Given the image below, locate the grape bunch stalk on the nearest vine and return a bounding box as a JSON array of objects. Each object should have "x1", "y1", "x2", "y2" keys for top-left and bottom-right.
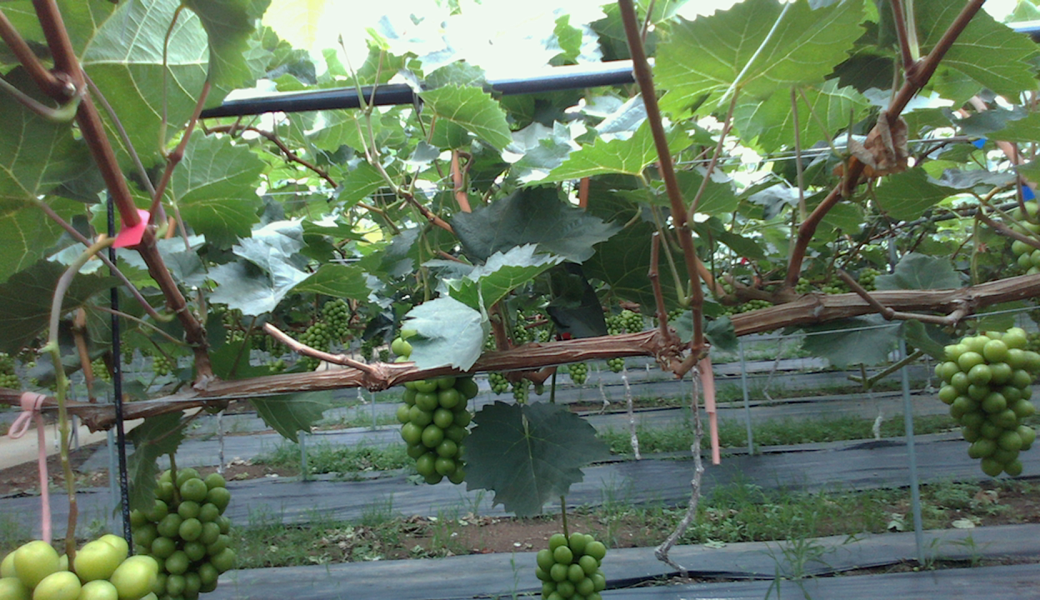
[{"x1": 37, "y1": 235, "x2": 110, "y2": 568}]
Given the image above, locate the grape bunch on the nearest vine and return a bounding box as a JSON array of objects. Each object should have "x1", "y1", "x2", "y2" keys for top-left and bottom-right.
[{"x1": 0, "y1": 535, "x2": 160, "y2": 599}]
